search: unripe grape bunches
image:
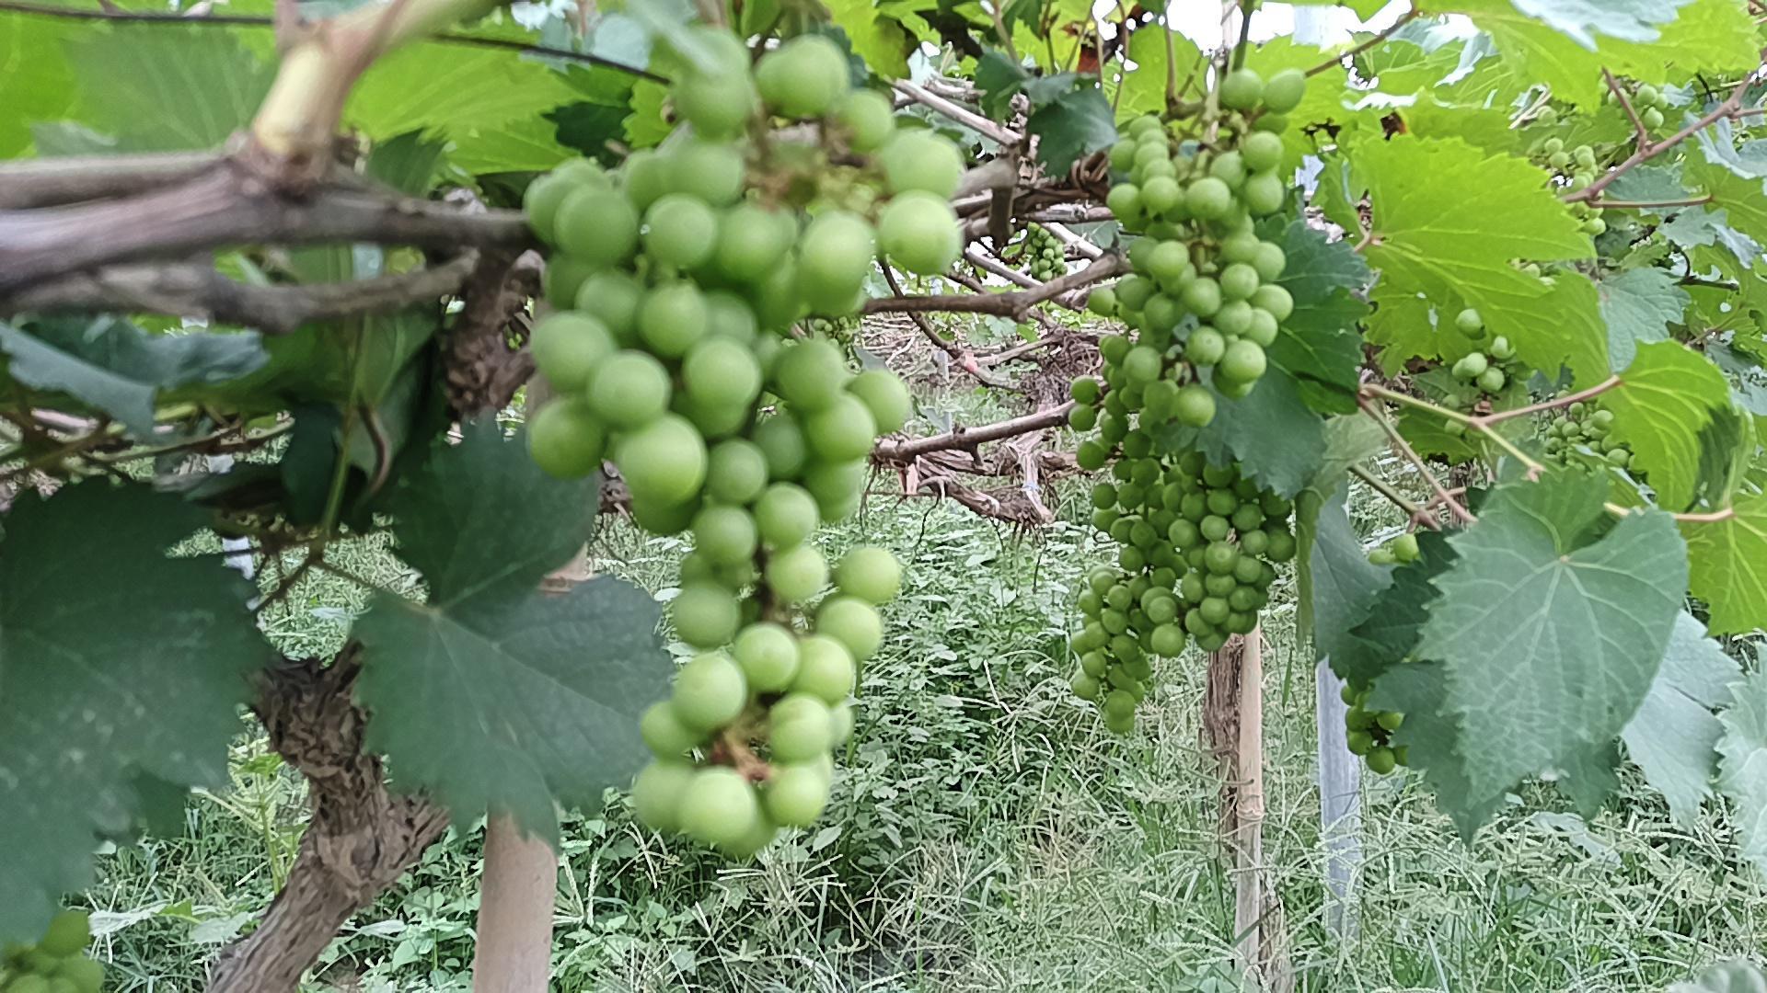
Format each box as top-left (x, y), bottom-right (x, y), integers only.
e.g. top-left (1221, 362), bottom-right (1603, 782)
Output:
top-left (1065, 280), bottom-right (1192, 736)
top-left (1106, 69), bottom-right (1304, 426)
top-left (1340, 537), bottom-right (1418, 774)
top-left (522, 37), bottom-right (961, 859)
top-left (1162, 454), bottom-right (1296, 649)
top-left (1026, 223), bottom-right (1065, 281)
top-left (1542, 138), bottom-right (1606, 235)
top-left (1603, 86), bottom-right (1669, 130)
top-left (1542, 403), bottom-right (1633, 469)
top-left (1444, 257), bottom-right (1555, 439)
top-left (0, 910), bottom-right (103, 992)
